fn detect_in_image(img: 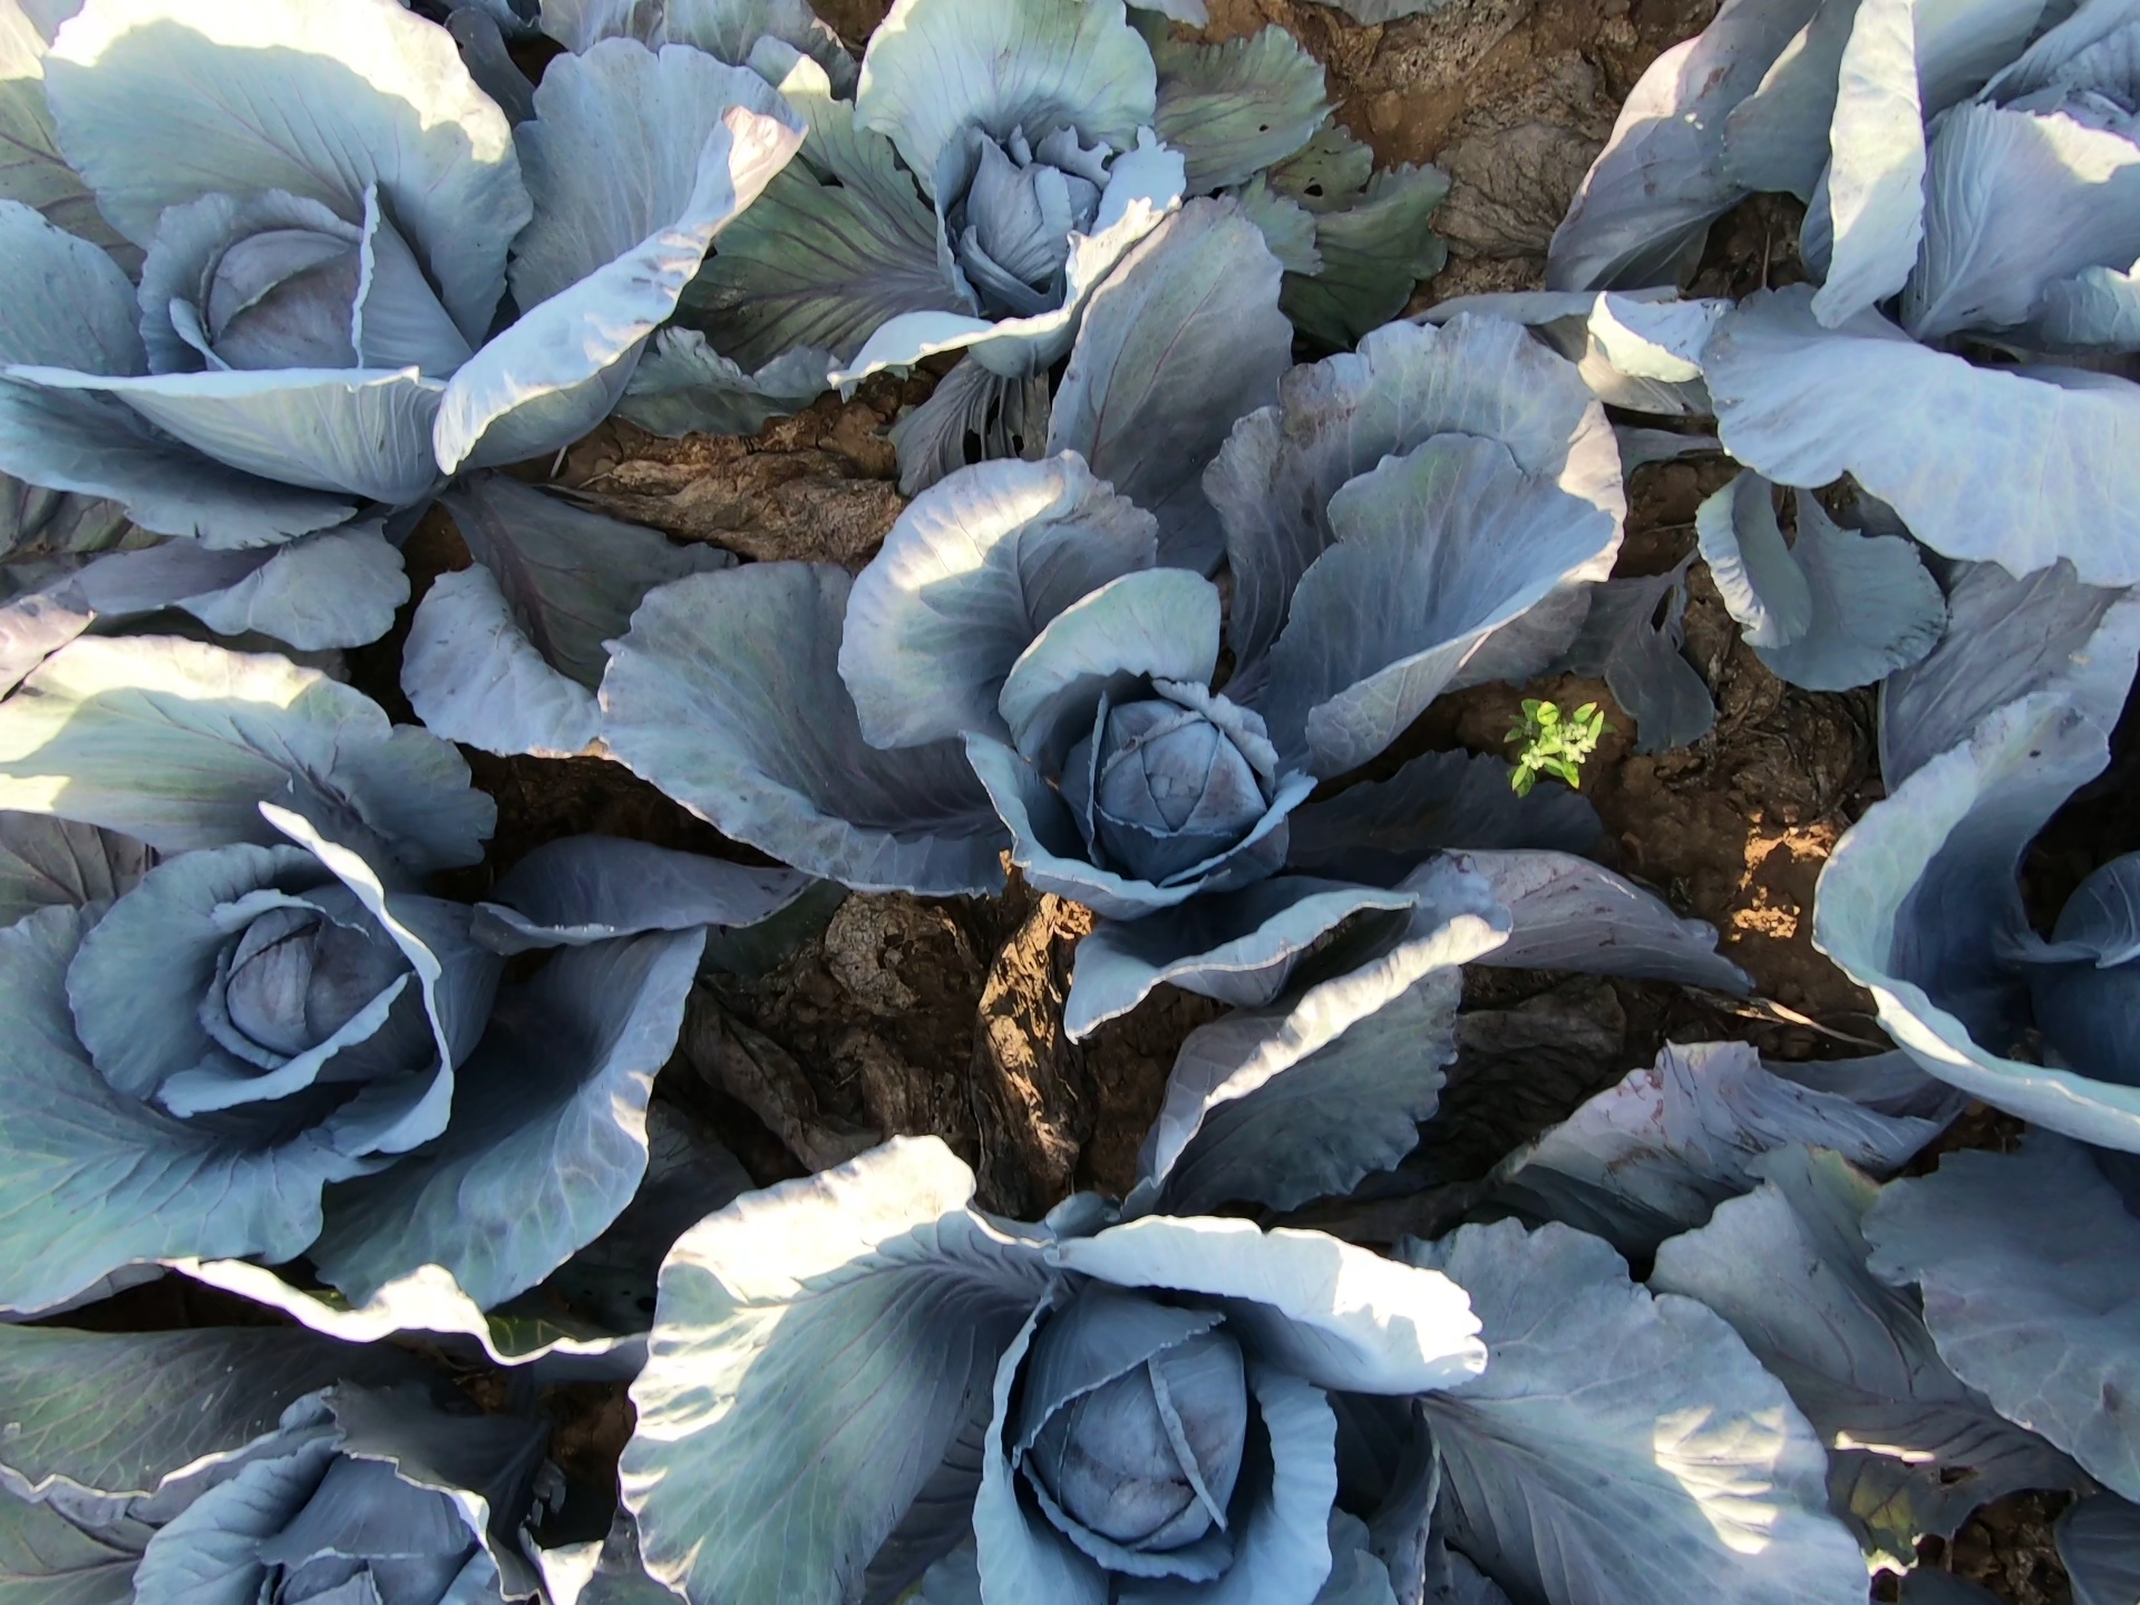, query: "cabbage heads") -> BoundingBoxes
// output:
[222,892,465,1082]
[985,158,1111,280]
[196,228,425,436]
[1951,82,2138,272]
[1021,1307,1246,1553]
[272,1448,483,1602]
[1076,695,1268,874]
